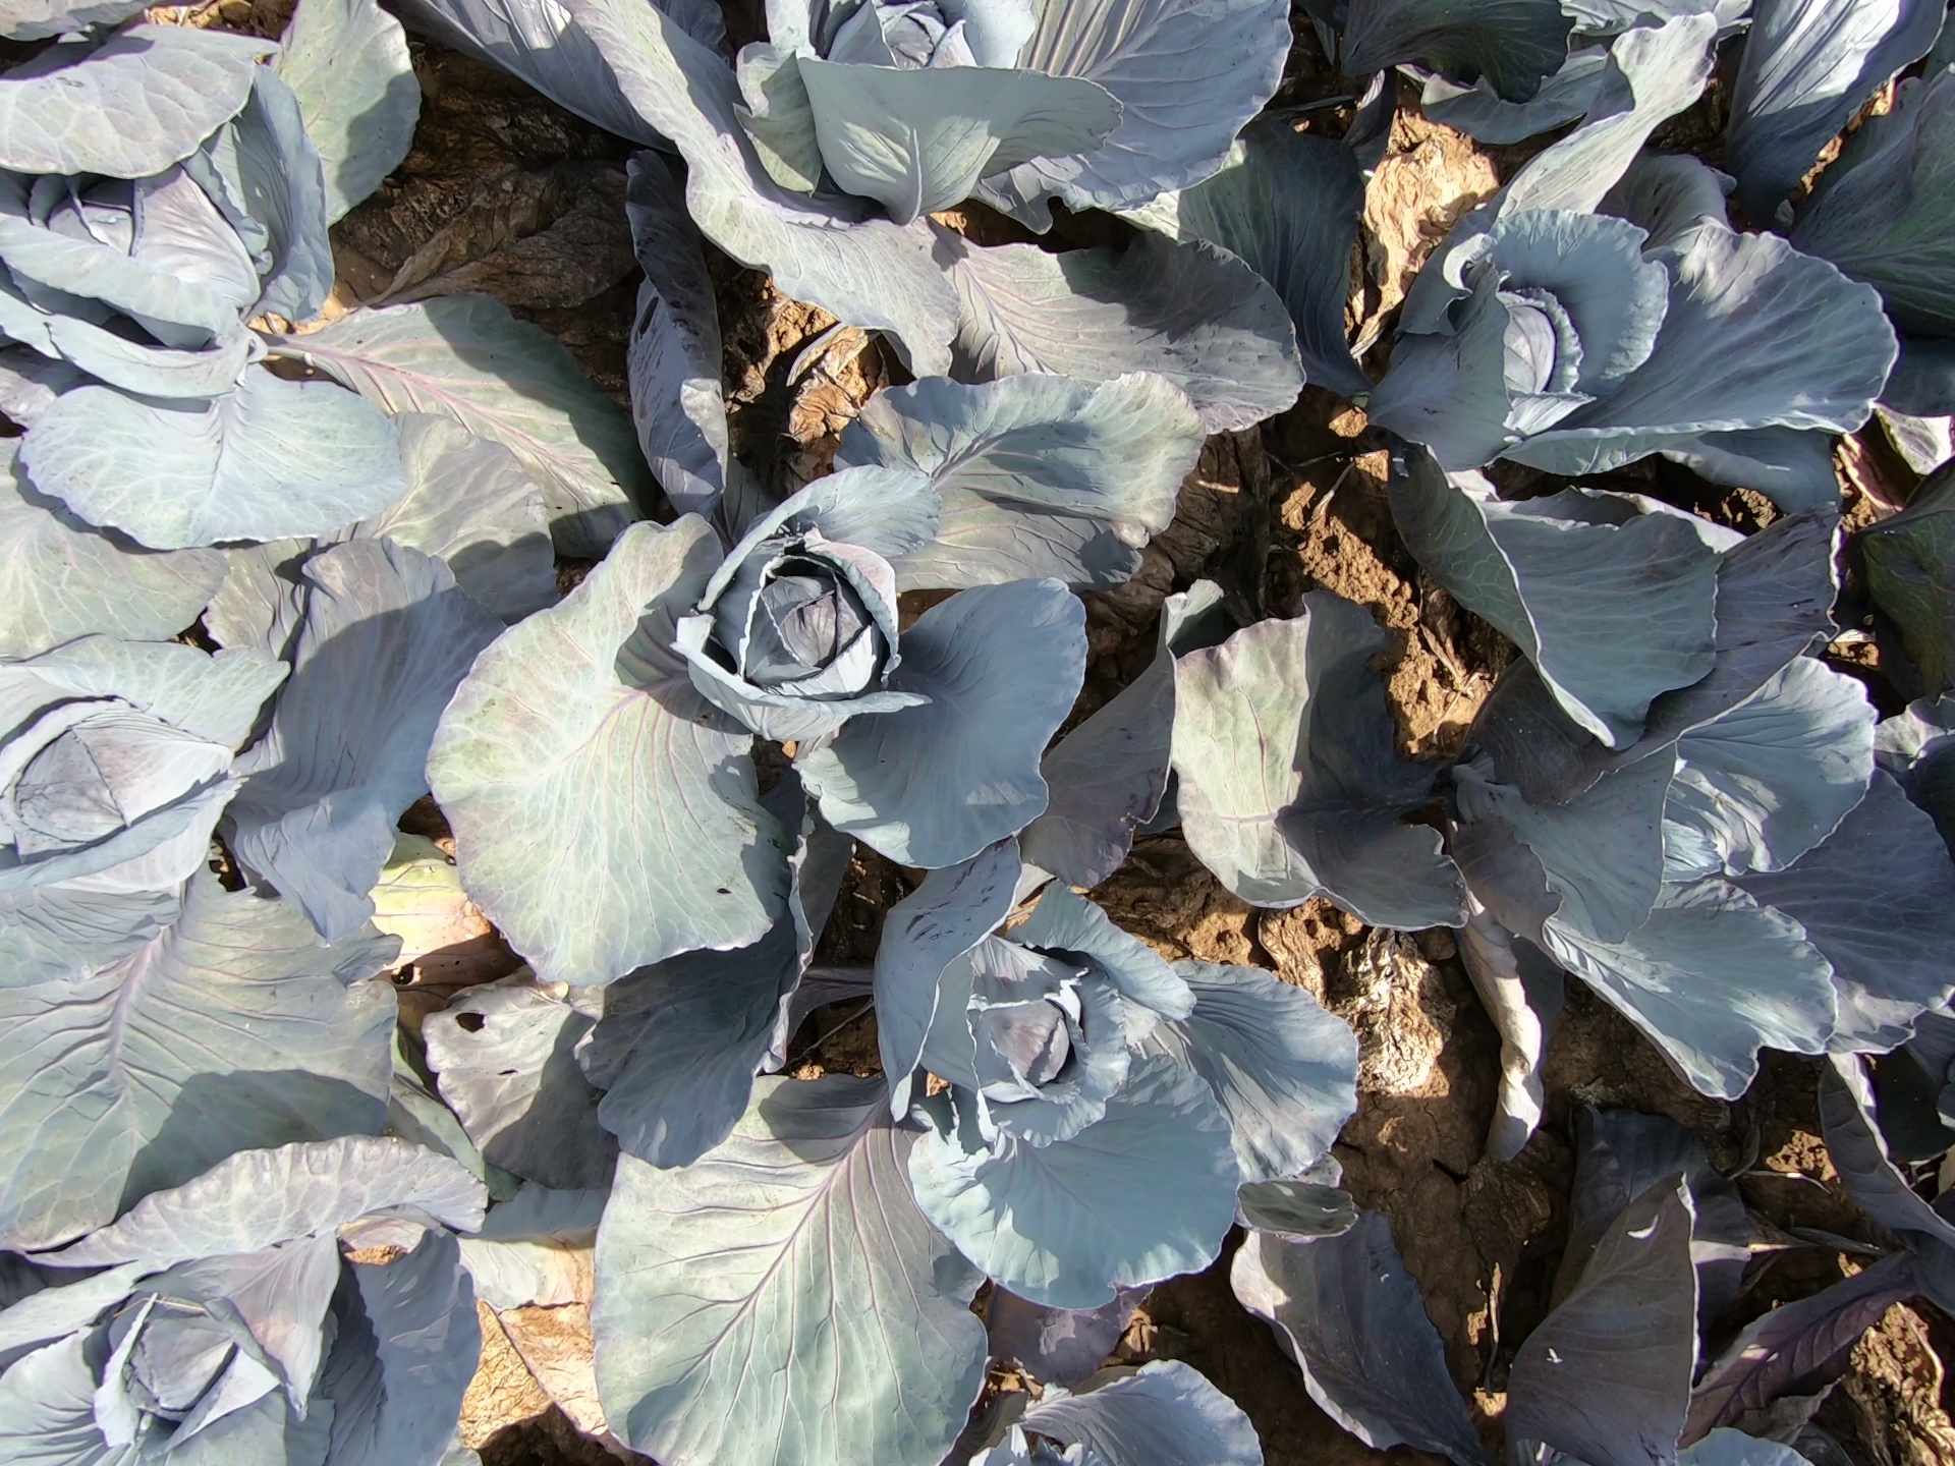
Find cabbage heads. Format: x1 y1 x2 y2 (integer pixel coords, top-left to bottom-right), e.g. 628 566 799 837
1413 287 1569 445
46 173 249 341
828 3 989 205
943 952 1084 1094
11 712 219 850
108 1244 327 1421
740 574 883 710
